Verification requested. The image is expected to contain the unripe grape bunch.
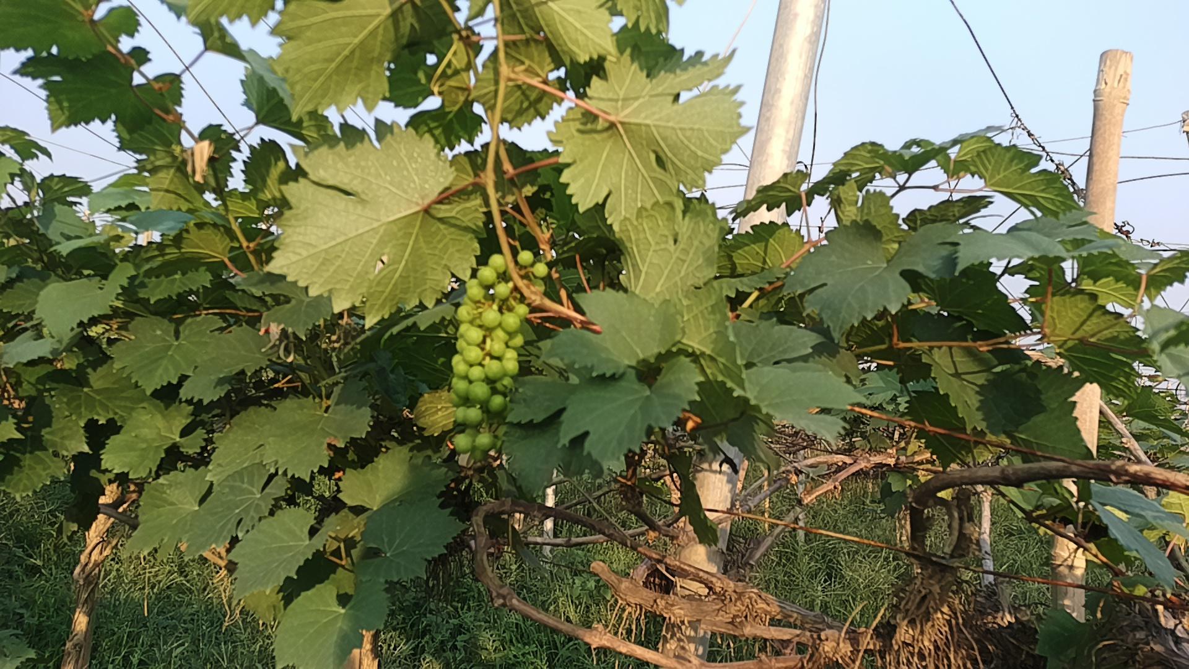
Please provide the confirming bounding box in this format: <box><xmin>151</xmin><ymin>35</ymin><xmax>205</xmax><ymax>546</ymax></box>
<box><xmin>450</xmin><ymin>250</ymin><xmax>557</xmax><ymax>461</ymax></box>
